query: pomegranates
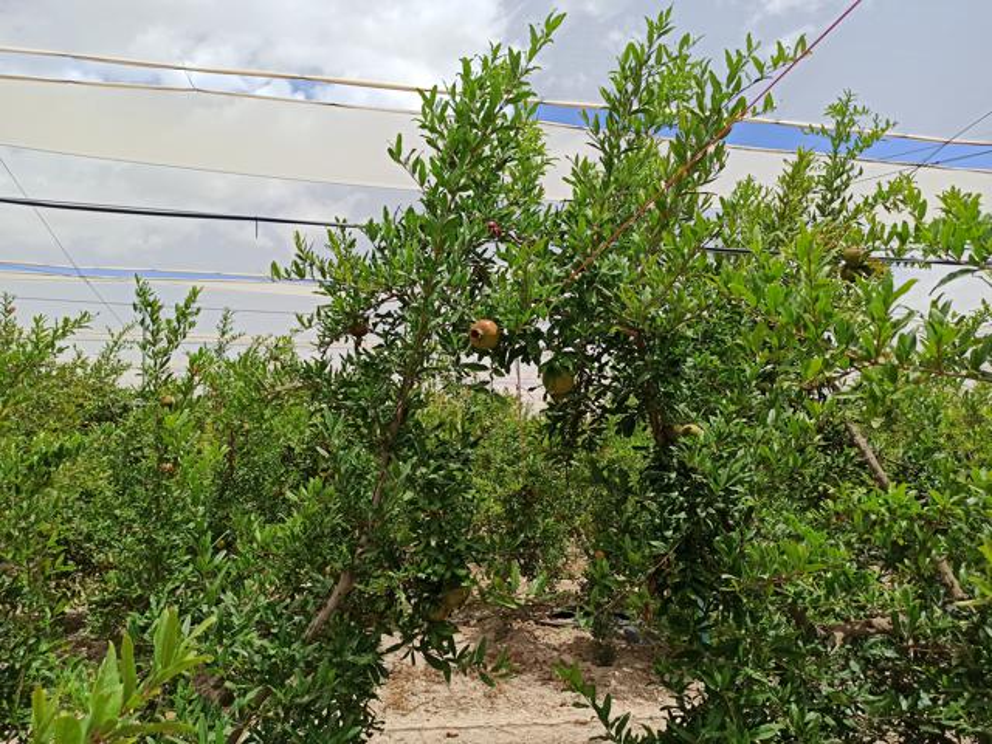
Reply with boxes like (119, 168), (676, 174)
(442, 589), (465, 609)
(468, 318), (499, 352)
(547, 374), (573, 397)
(160, 462), (174, 473)
(161, 395), (172, 405)
(429, 604), (449, 622)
